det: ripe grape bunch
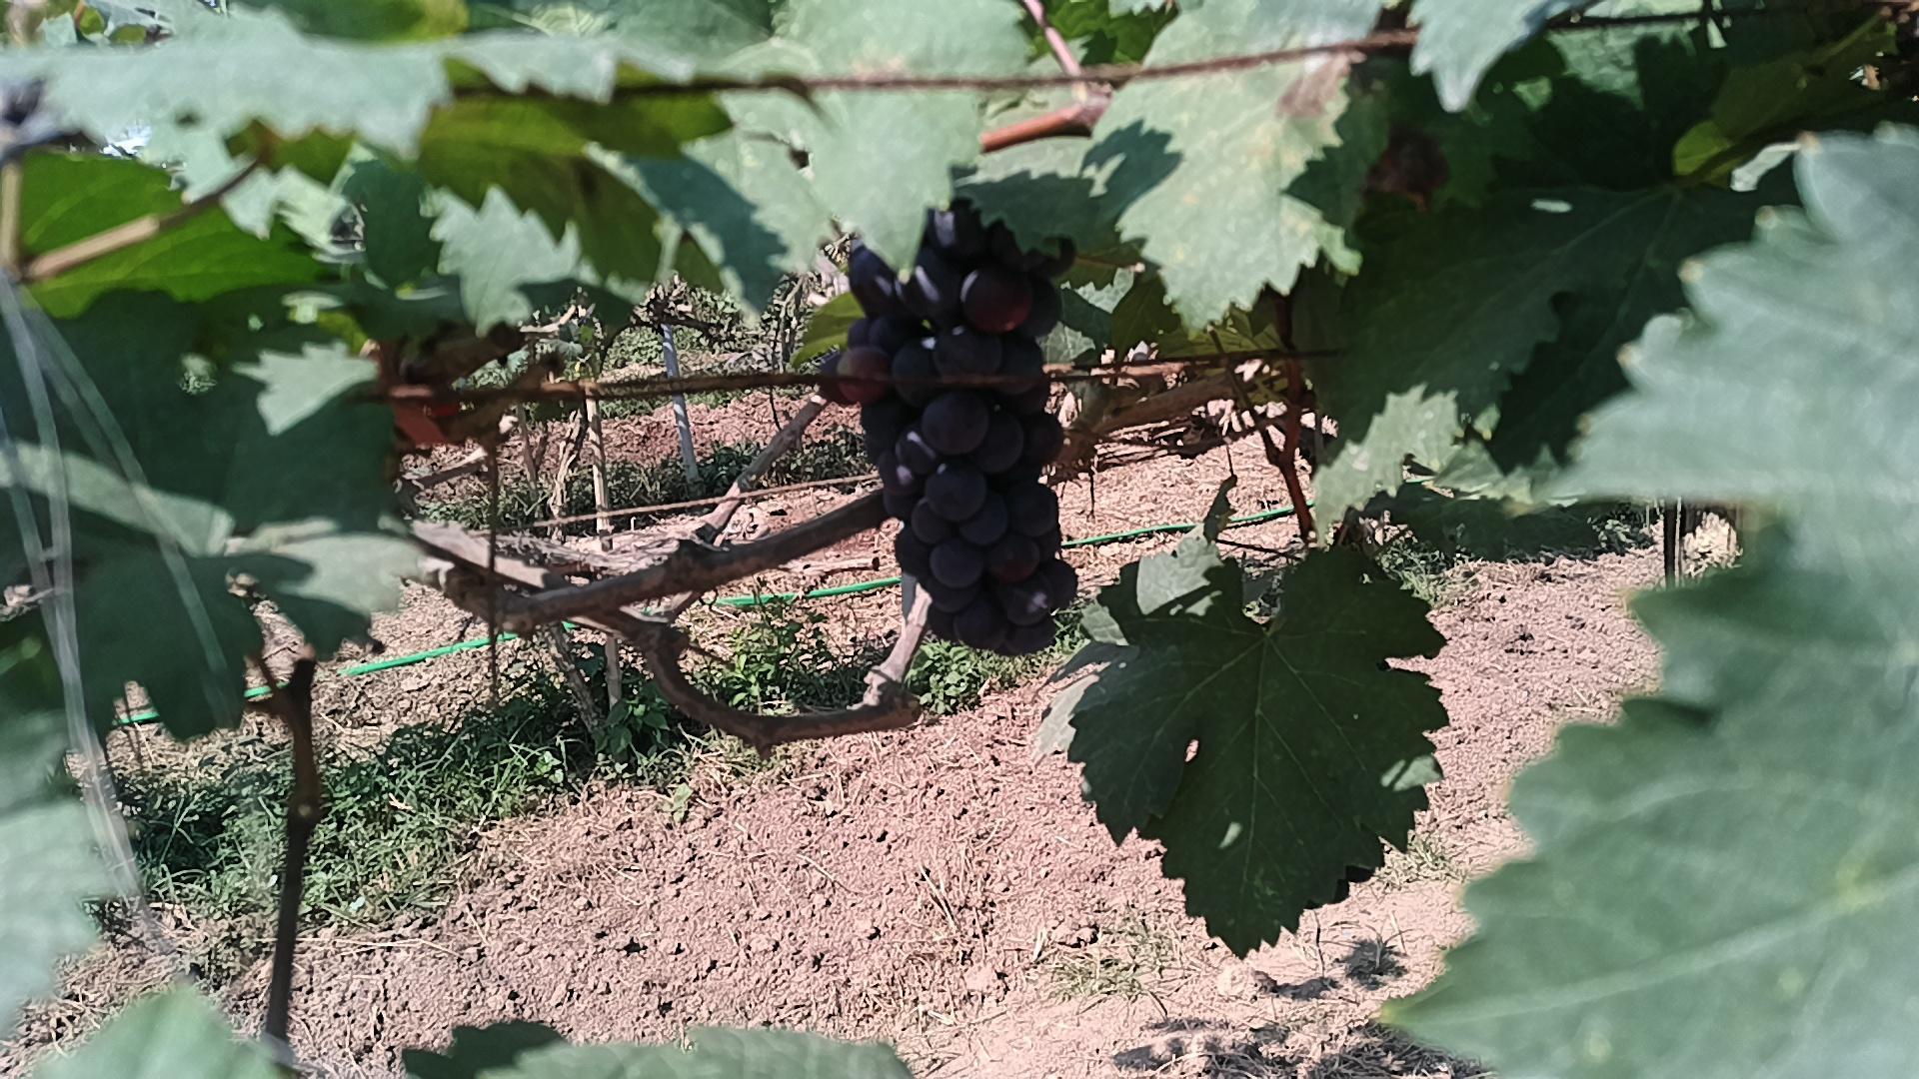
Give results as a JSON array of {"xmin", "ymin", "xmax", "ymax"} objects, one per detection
[{"xmin": 824, "ymin": 200, "xmax": 1075, "ymax": 654}]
